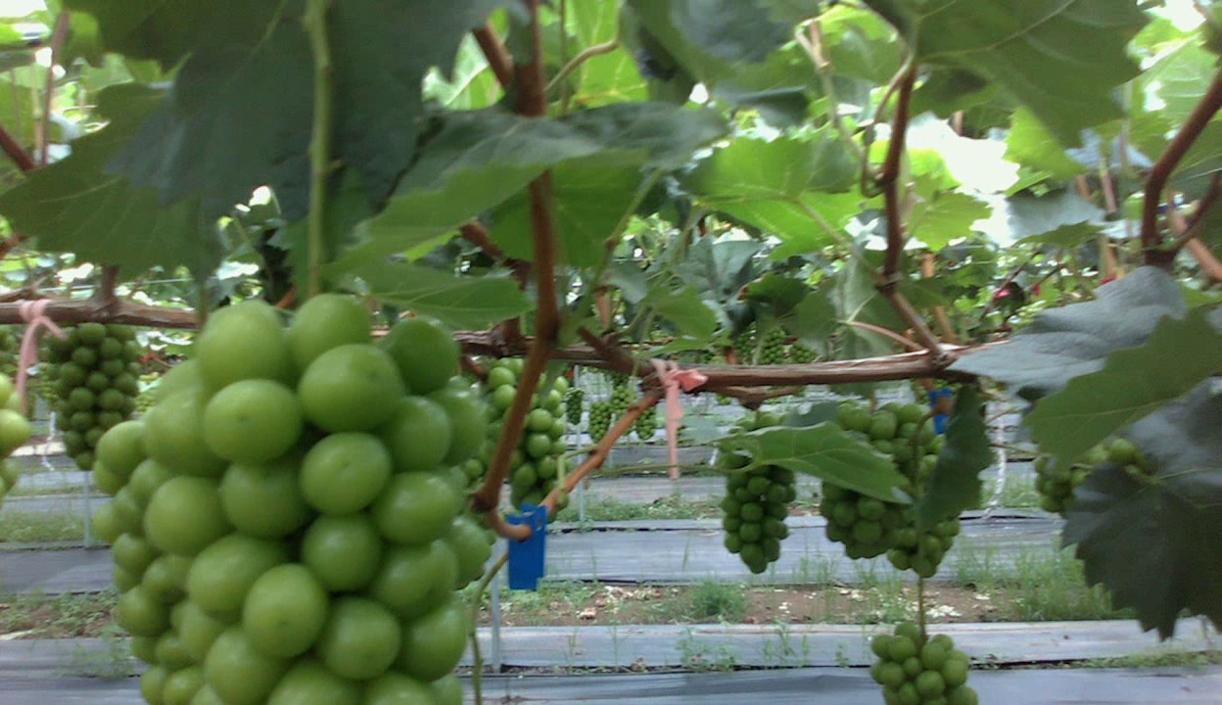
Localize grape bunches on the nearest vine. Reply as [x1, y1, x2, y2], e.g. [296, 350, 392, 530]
[92, 408, 204, 704]
[145, 289, 487, 703]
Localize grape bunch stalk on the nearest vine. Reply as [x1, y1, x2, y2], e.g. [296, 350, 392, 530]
[305, 2, 332, 299]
